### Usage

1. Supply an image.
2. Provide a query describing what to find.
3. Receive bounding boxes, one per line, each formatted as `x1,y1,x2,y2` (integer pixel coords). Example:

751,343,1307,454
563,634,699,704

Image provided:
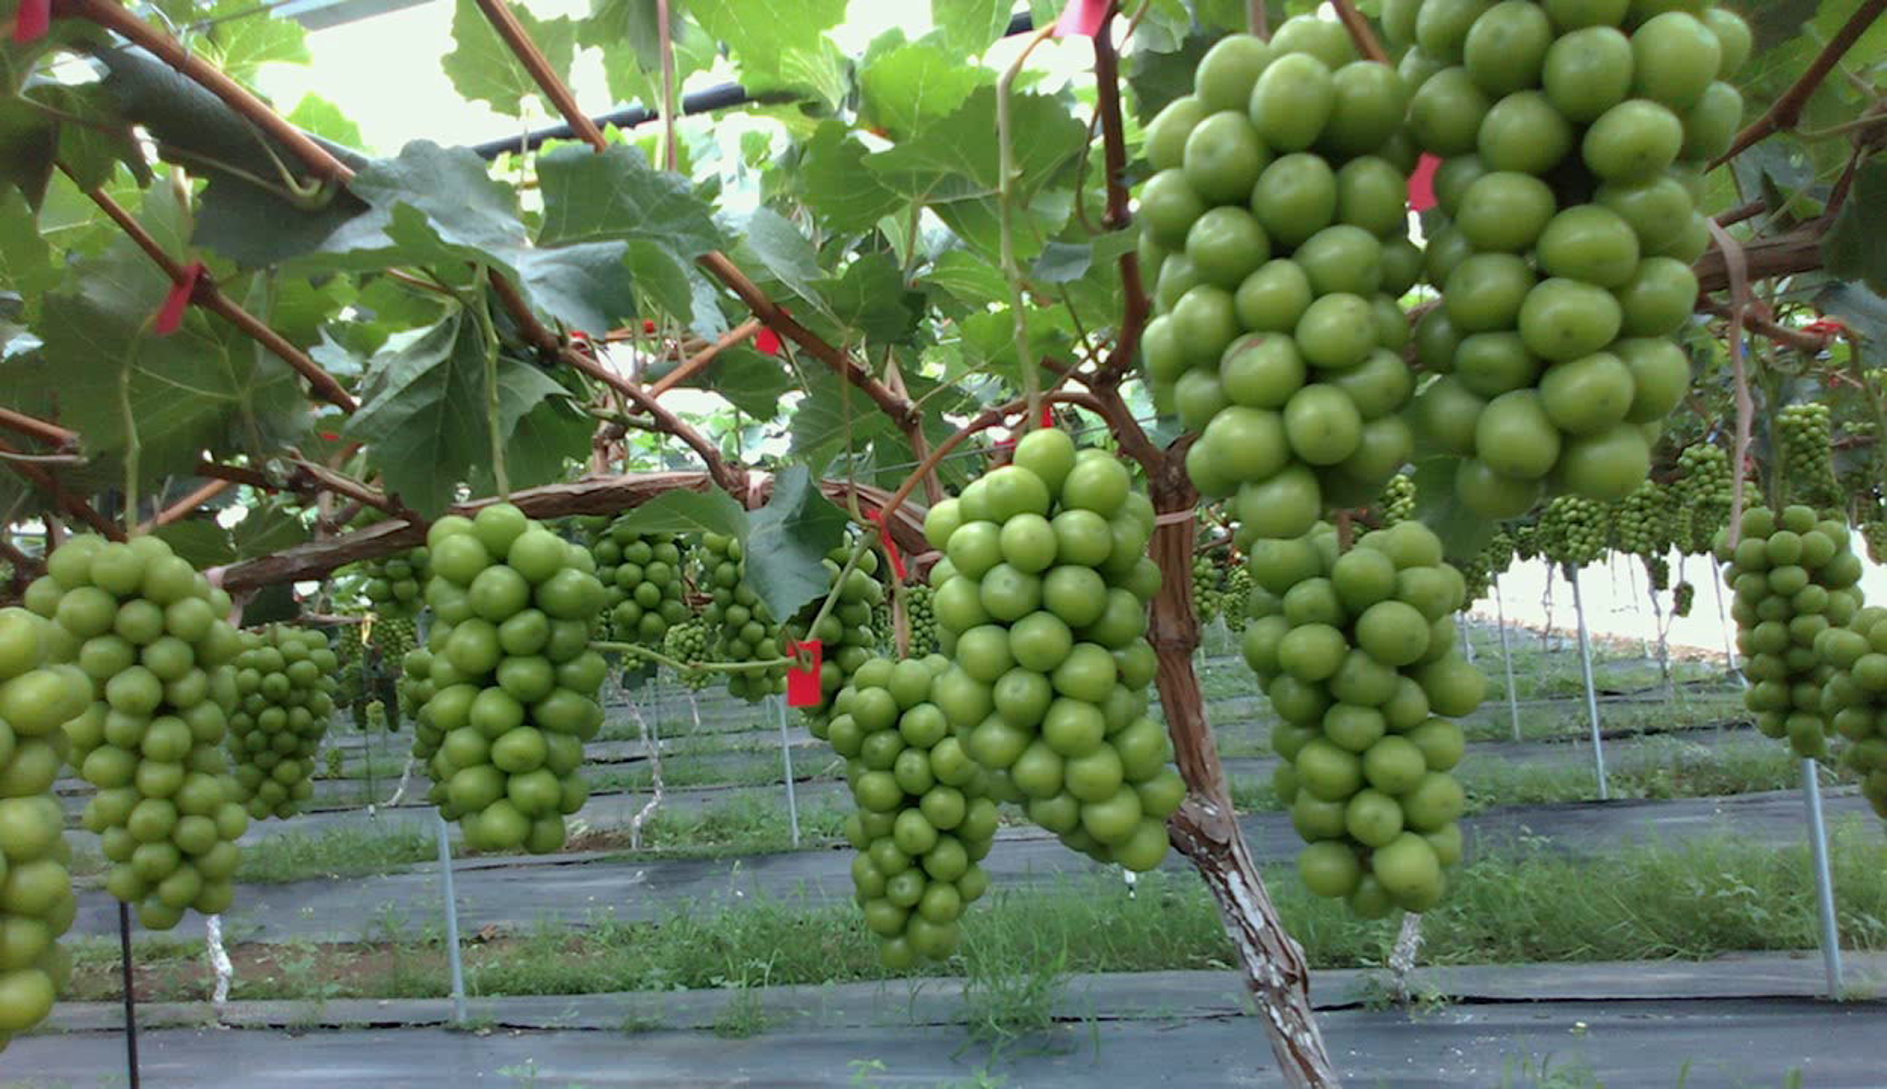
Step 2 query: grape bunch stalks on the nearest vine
475,268,510,502
996,23,1057,430
885,551,909,656
118,310,159,538
1341,513,1352,548
1247,2,1270,41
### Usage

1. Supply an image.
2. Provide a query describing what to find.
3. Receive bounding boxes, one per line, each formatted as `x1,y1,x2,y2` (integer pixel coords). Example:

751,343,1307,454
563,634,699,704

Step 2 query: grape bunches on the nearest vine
1382,2,1752,520
0,610,86,1050
1136,15,1423,540
1243,522,1489,921
919,428,1187,874
26,534,249,932
826,655,1007,973
425,504,609,856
